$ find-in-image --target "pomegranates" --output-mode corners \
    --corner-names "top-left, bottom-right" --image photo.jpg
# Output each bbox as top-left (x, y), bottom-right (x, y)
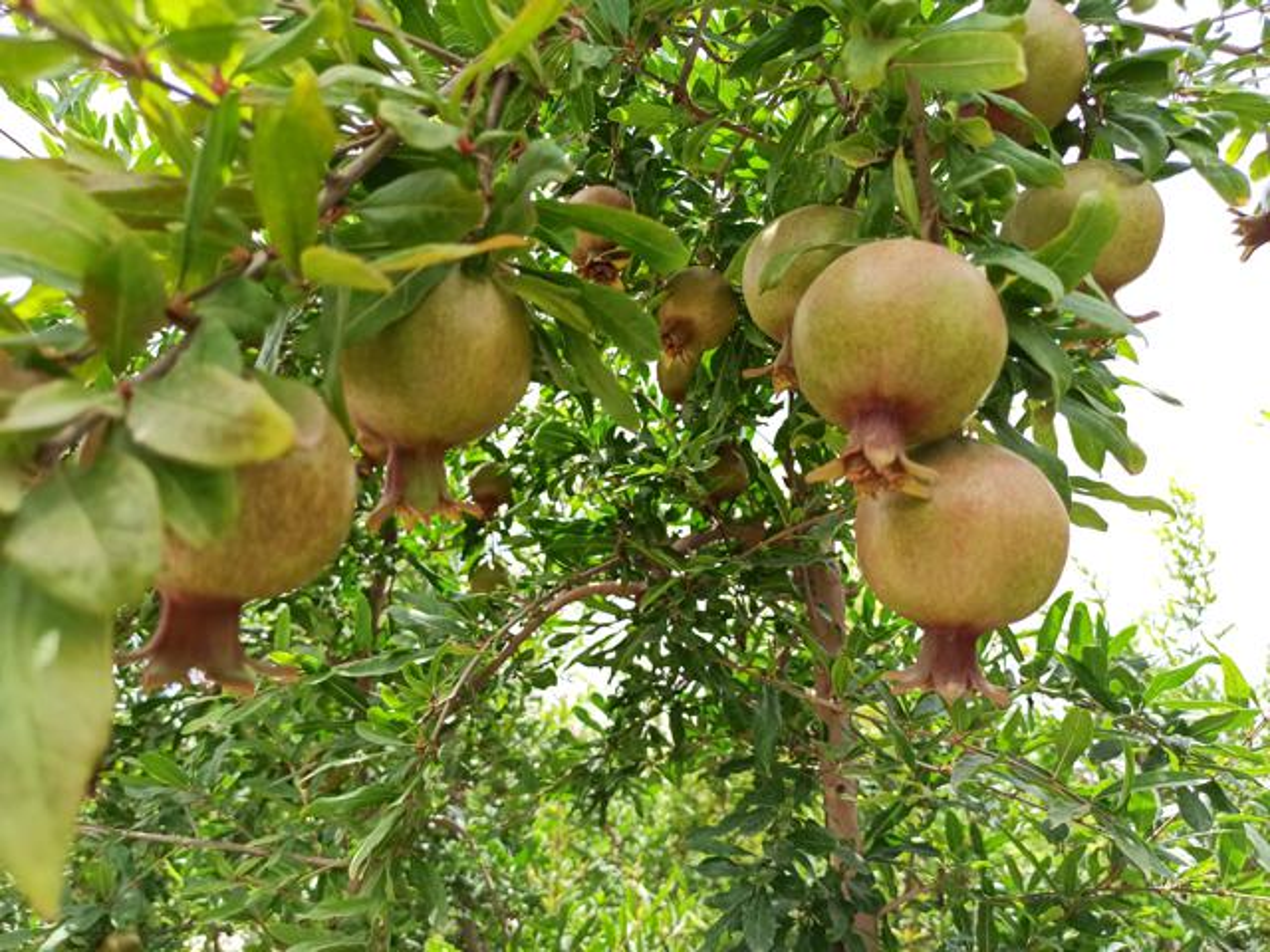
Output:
top-left (117, 413), bottom-right (357, 690)
top-left (960, 0), bottom-right (1087, 147)
top-left (468, 466), bottom-right (510, 514)
top-left (657, 355), bottom-right (700, 403)
top-left (343, 268), bottom-right (536, 532)
top-left (740, 204), bottom-right (861, 397)
top-left (659, 264), bottom-right (734, 367)
top-left (1224, 206), bottom-right (1270, 266)
top-left (568, 184), bottom-right (633, 284)
top-left (1000, 159), bottom-right (1165, 359)
top-left (792, 238), bottom-right (1008, 502)
top-left (708, 444), bottom-right (750, 516)
top-left (855, 440), bottom-right (1072, 708)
